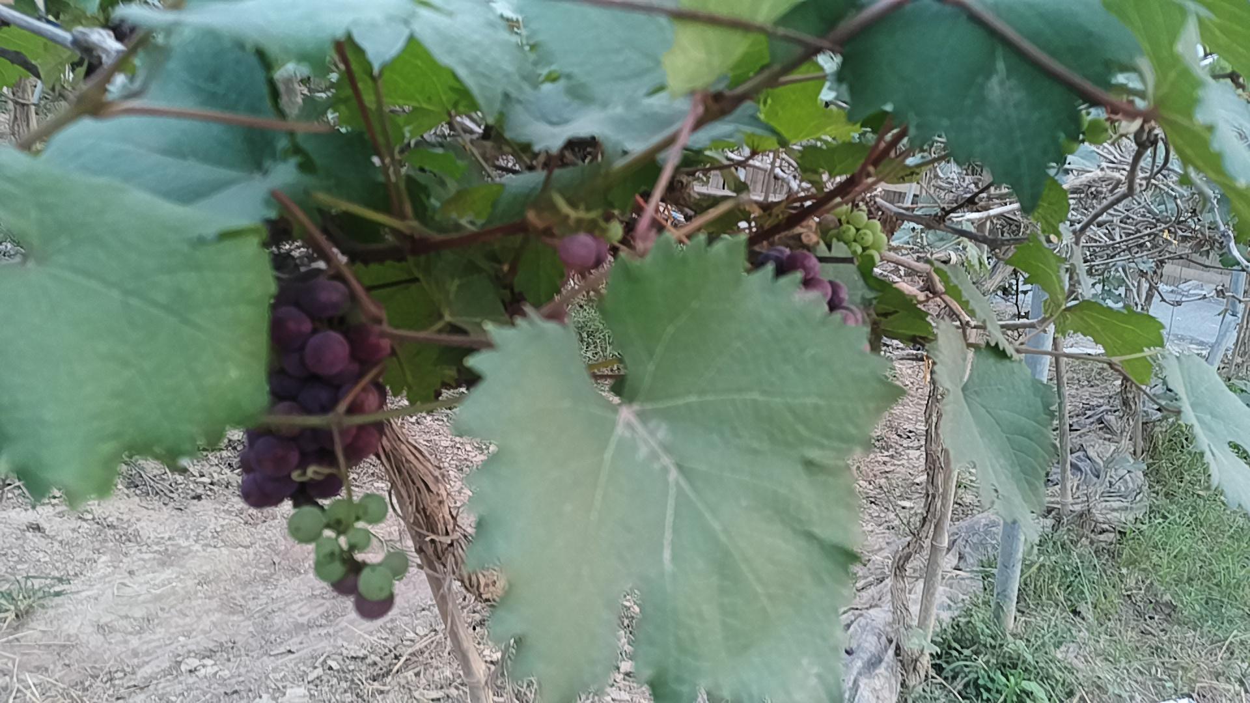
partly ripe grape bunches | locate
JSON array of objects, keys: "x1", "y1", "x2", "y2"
[
  {"x1": 554, "y1": 197, "x2": 624, "y2": 274},
  {"x1": 240, "y1": 270, "x2": 408, "y2": 619}
]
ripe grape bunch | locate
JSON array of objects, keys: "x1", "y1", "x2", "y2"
[{"x1": 761, "y1": 247, "x2": 862, "y2": 325}]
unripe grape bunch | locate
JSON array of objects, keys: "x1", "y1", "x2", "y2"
[{"x1": 818, "y1": 206, "x2": 887, "y2": 268}]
